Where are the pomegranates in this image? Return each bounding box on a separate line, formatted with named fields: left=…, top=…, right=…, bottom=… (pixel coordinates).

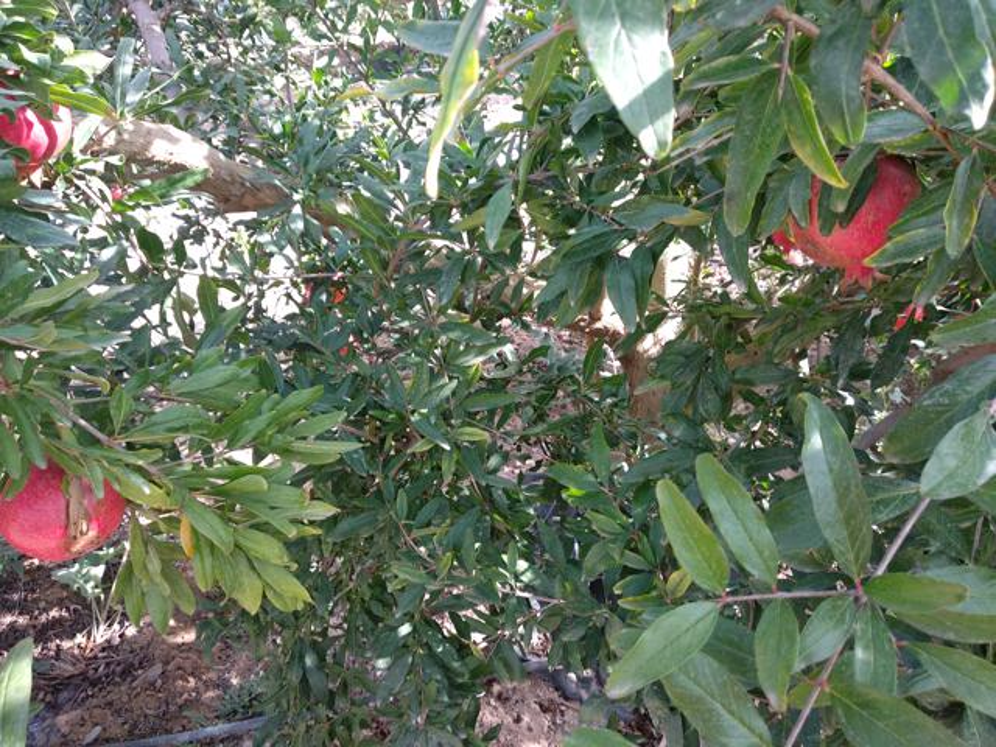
left=789, top=156, right=921, bottom=293
left=0, top=462, right=126, bottom=559
left=0, top=106, right=58, bottom=179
